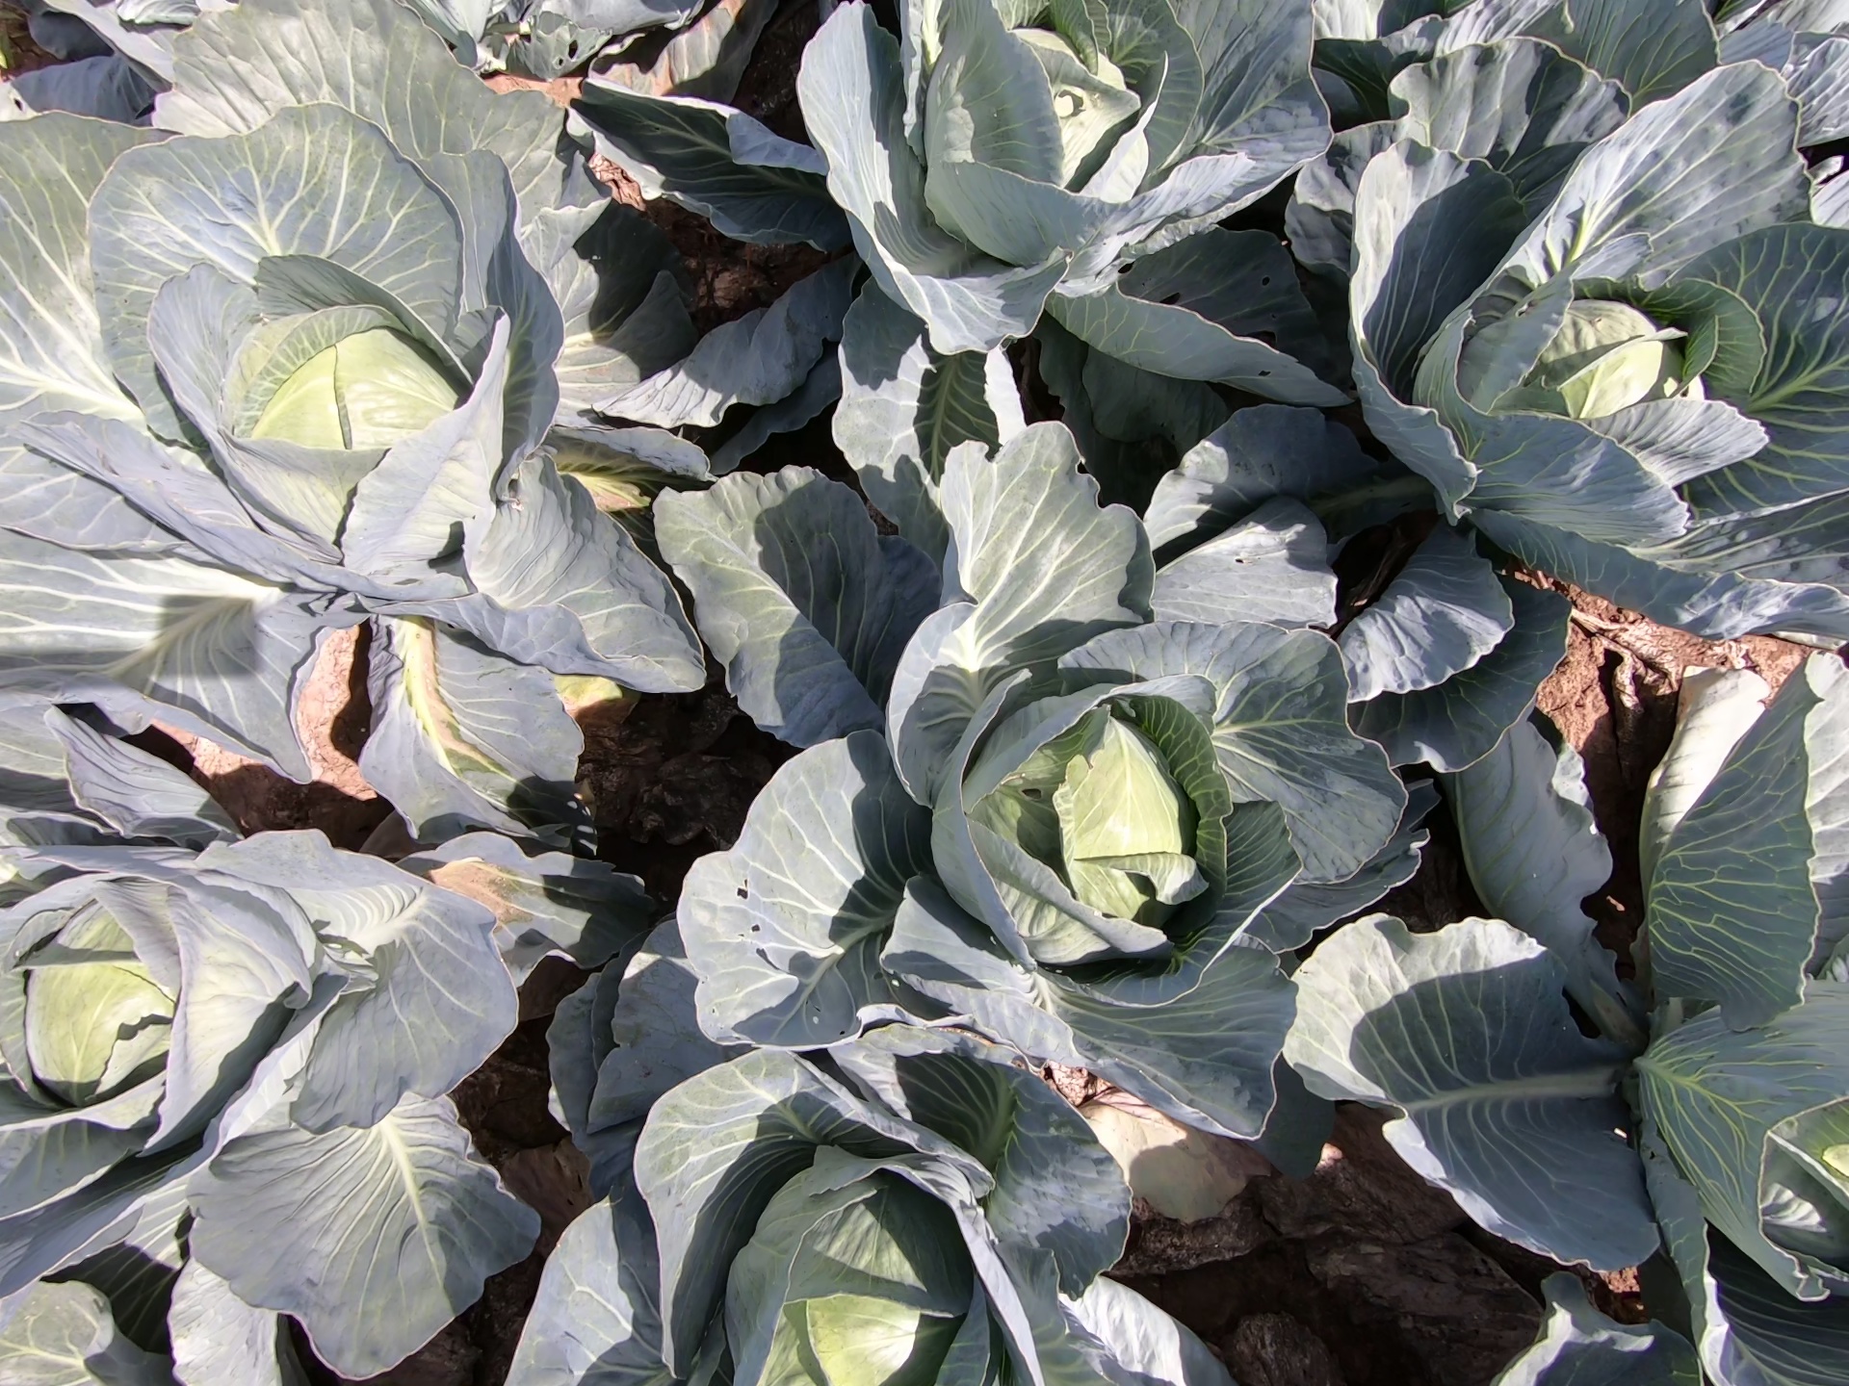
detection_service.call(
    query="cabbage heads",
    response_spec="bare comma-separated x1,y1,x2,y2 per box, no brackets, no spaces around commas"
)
946,706,1205,970
926,21,1147,269
216,311,498,570
13,868,313,1135
1445,288,1711,505
722,1158,1000,1384
1662,983,1843,1272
